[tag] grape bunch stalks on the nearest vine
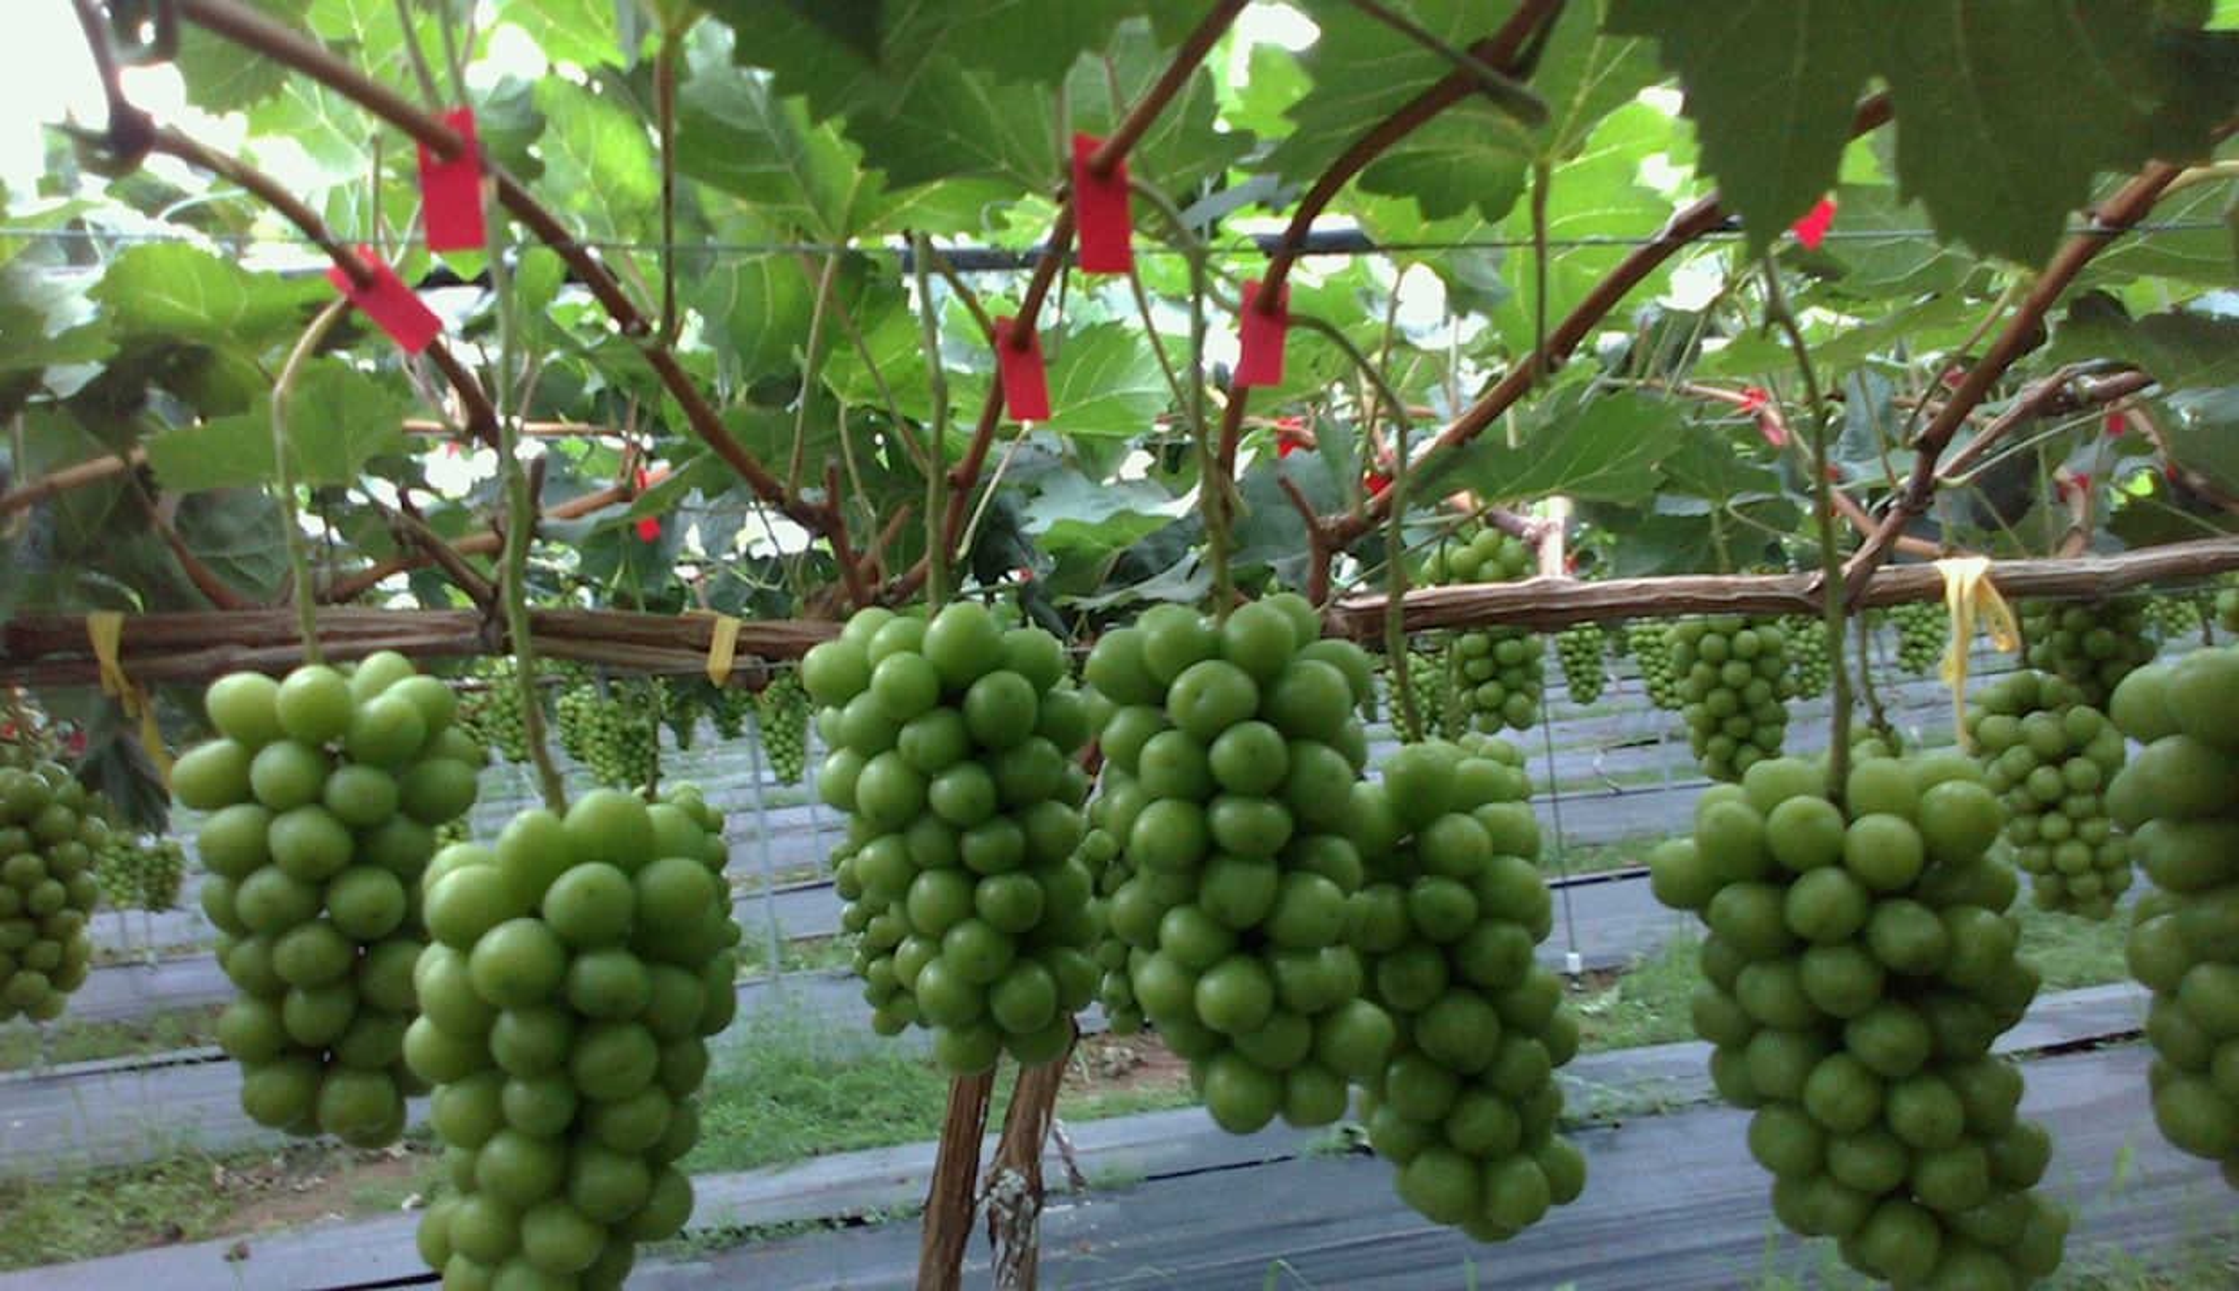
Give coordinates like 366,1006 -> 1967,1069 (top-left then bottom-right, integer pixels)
269,301 -> 344,662
1760,251 -> 1855,809
481,183 -> 565,812
1292,316 -> 1424,741
915,233 -> 949,613
1132,179 -> 1236,615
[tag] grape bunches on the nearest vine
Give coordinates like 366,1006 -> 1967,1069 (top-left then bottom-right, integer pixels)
176,653 -> 481,1155
402,791 -> 737,1289
797,599 -> 1105,1076
1647,749 -> 2065,1289
1082,590 -> 1392,1137
1347,737 -> 1588,1241
2108,645 -> 2237,1189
